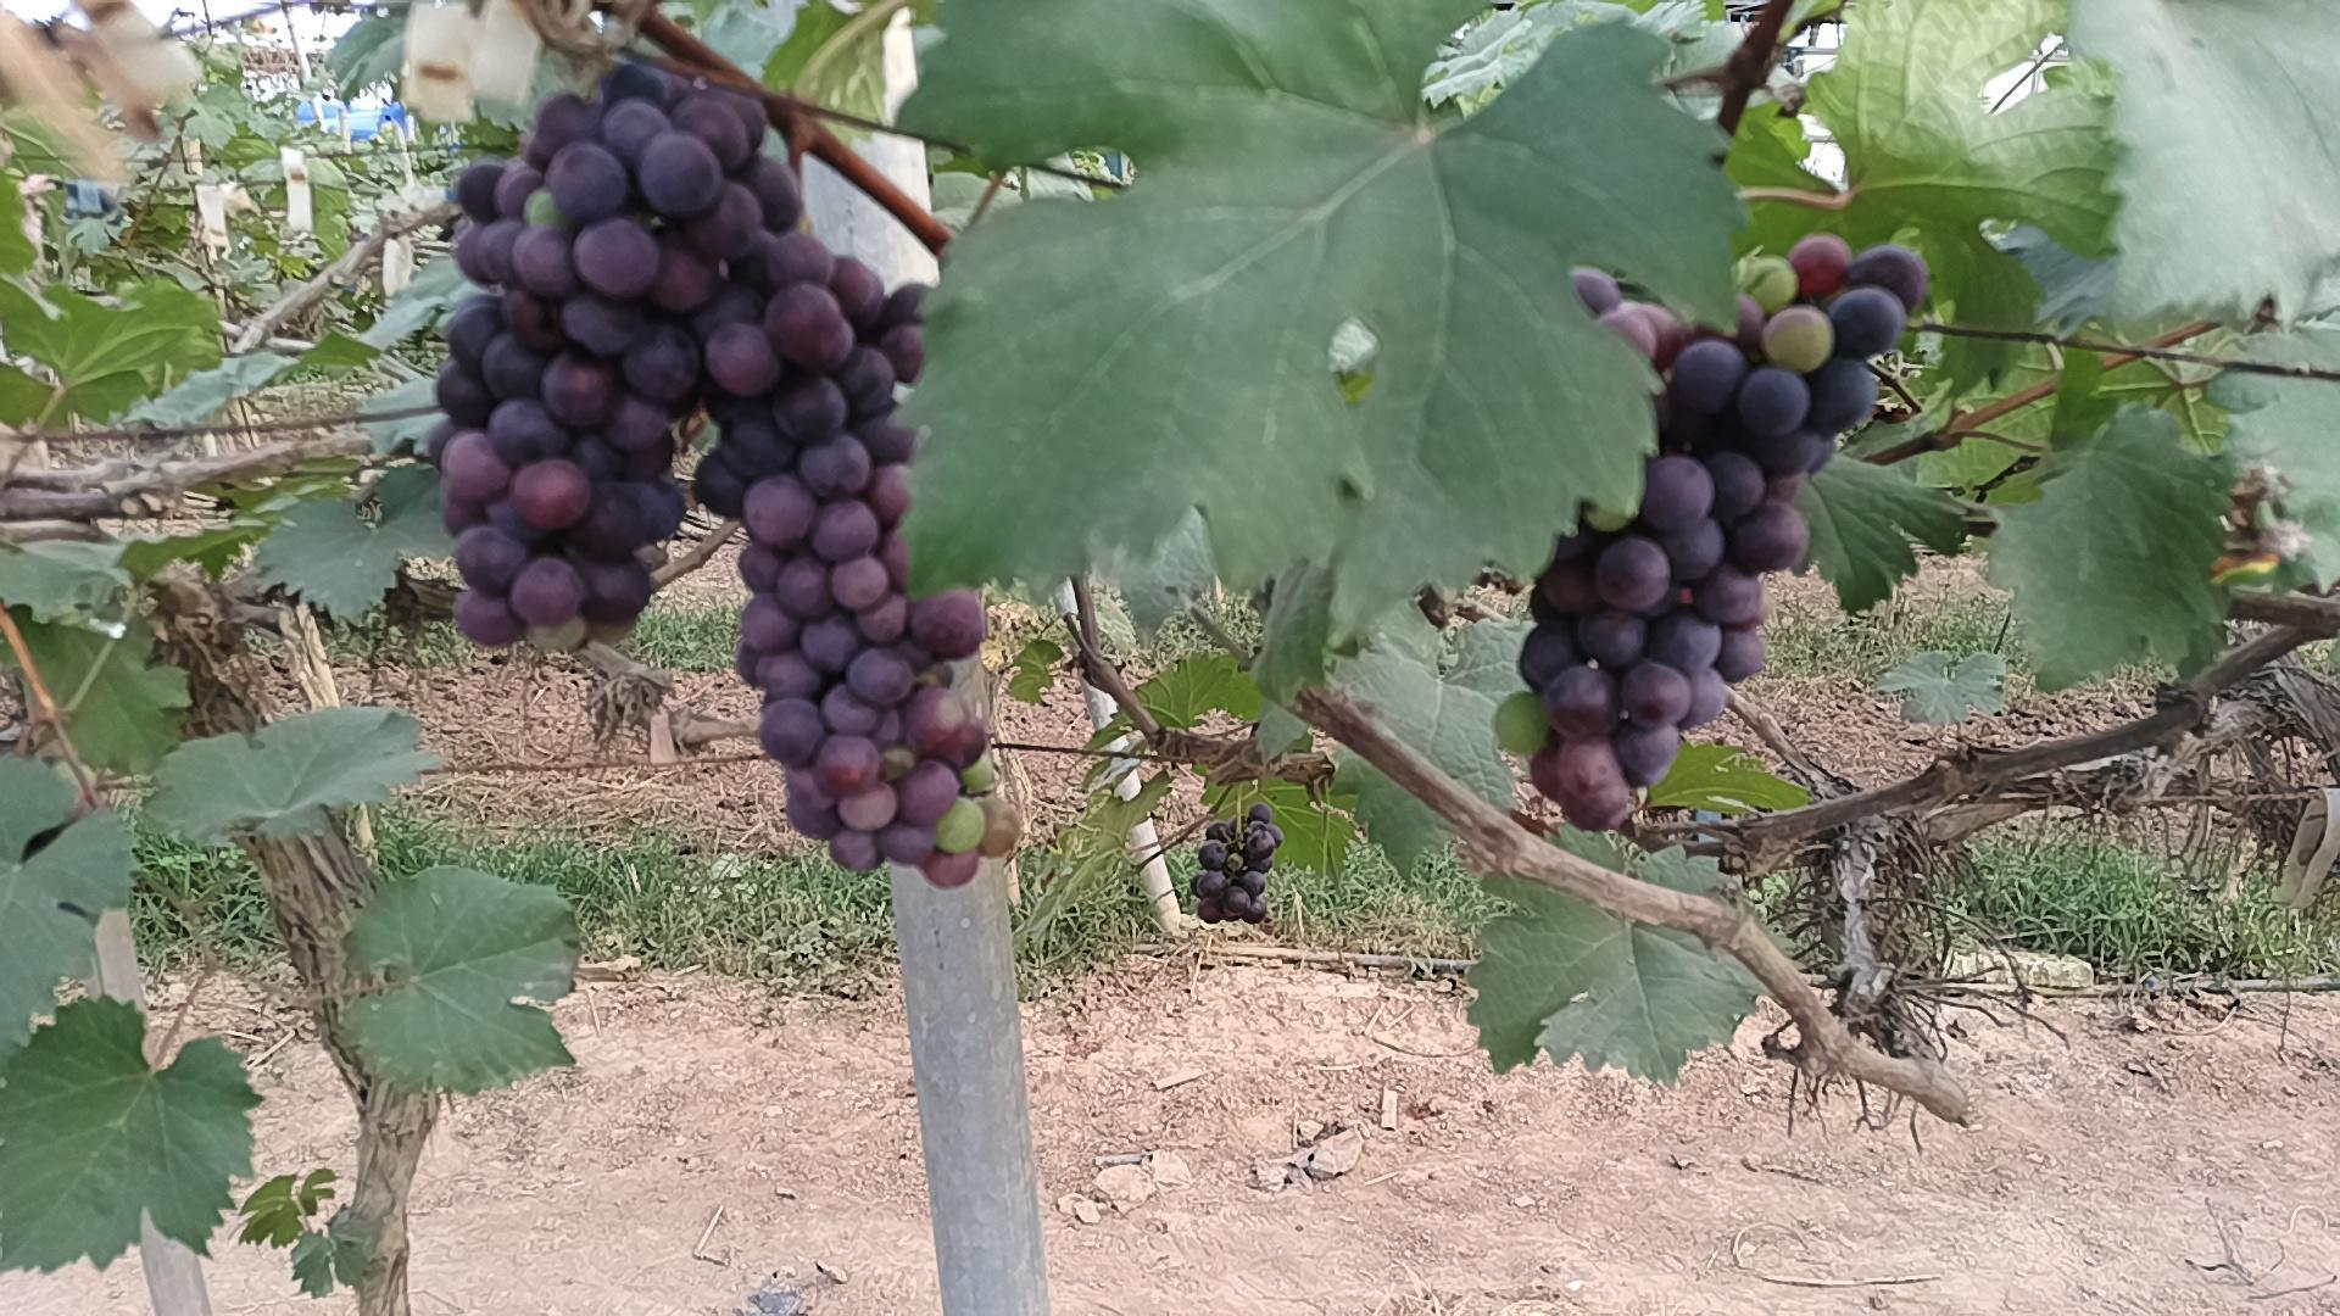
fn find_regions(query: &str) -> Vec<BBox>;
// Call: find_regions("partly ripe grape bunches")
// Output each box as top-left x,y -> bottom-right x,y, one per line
1491,232 -> 1927,830
428,61 -> 804,649
692,225 -> 1023,890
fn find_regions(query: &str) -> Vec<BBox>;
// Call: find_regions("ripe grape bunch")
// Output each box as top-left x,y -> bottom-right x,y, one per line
1189,802 -> 1285,925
